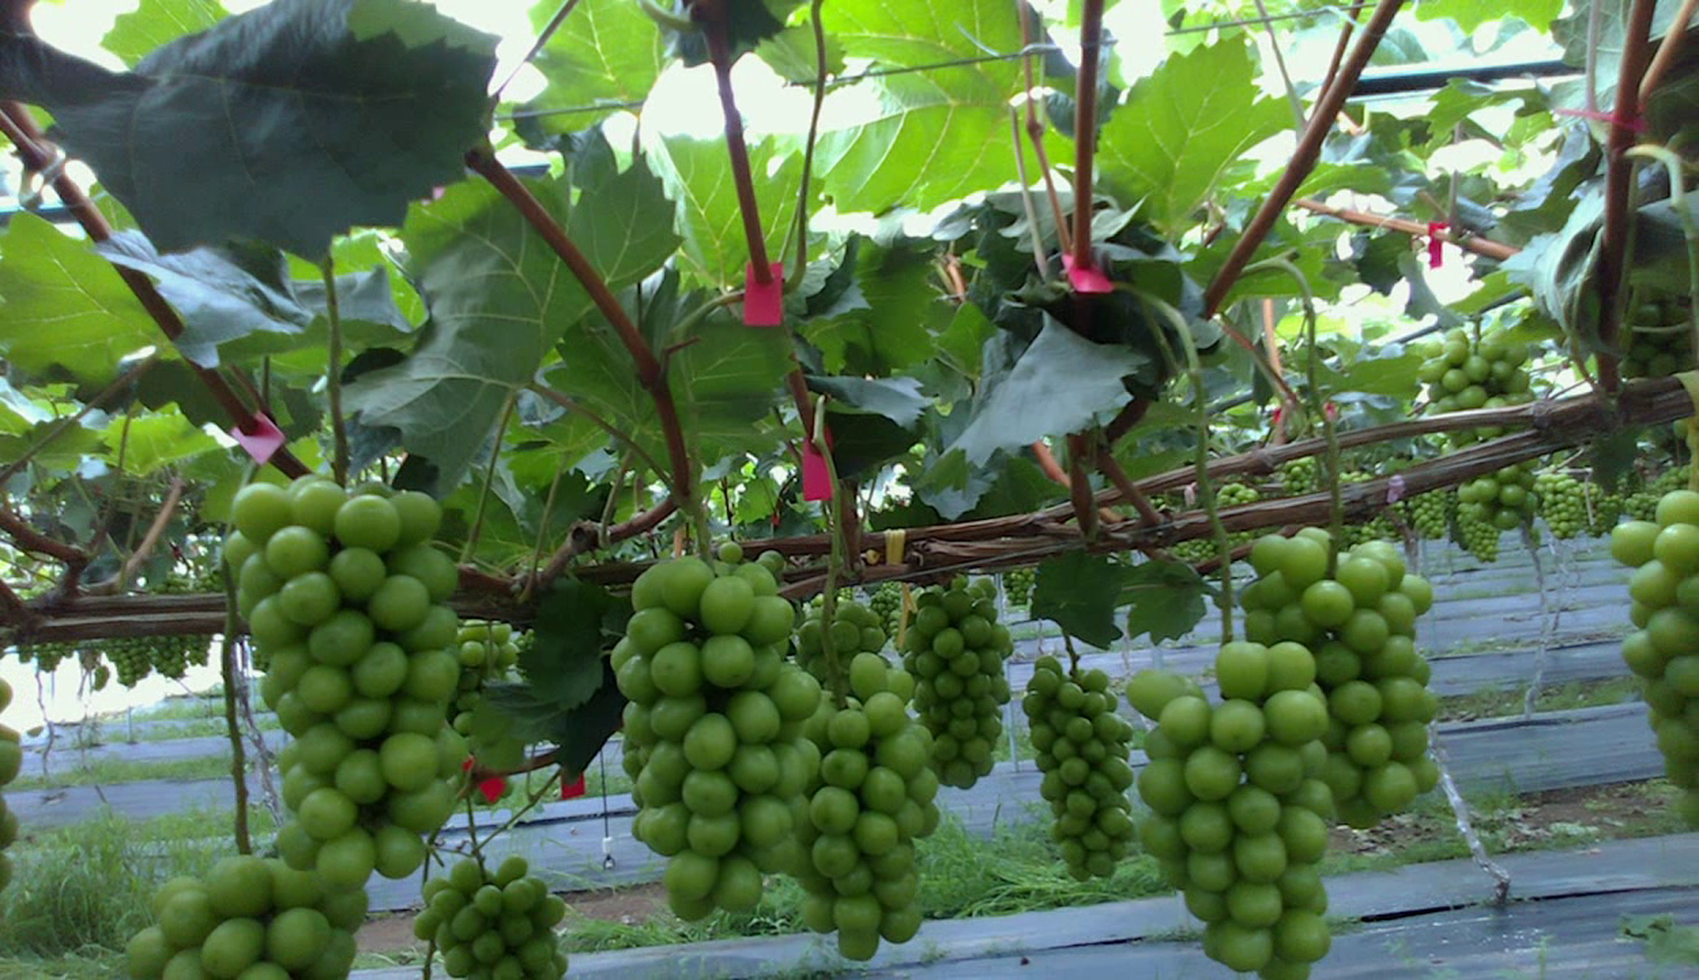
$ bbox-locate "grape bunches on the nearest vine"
[414,855,568,979]
[787,653,942,964]
[610,558,822,920]
[1126,640,1334,979]
[1239,525,1439,830]
[226,475,468,893]
[1608,489,1698,830]
[128,855,369,979]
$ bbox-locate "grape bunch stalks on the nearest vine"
[219,457,260,852]
[811,396,847,706]
[1642,146,1698,320]
[675,295,737,565]
[1120,283,1233,641]
[320,253,350,487]
[1246,250,1341,580]
[467,800,487,882]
